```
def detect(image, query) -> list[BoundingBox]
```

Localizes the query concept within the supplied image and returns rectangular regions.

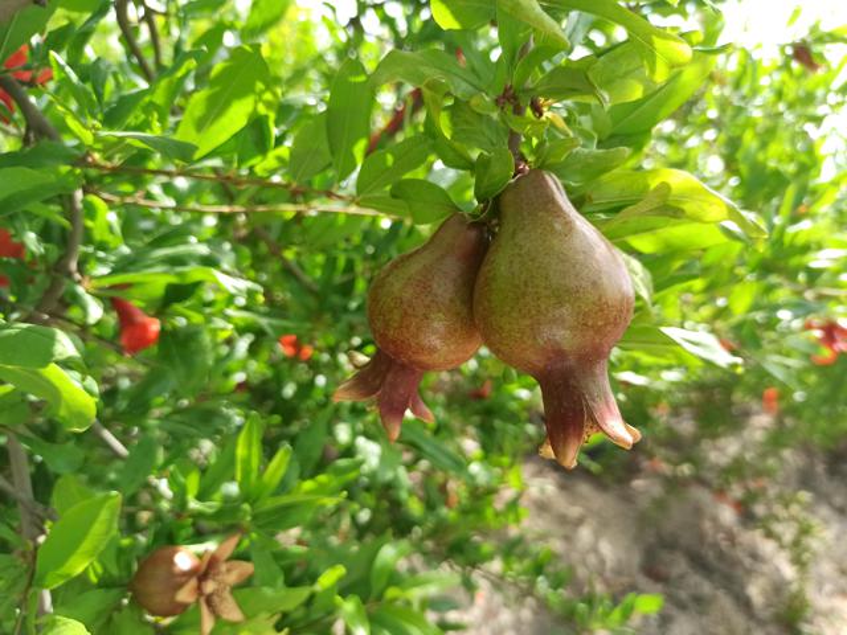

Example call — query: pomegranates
[470,165,645,470]
[128,532,254,635]
[331,212,494,444]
